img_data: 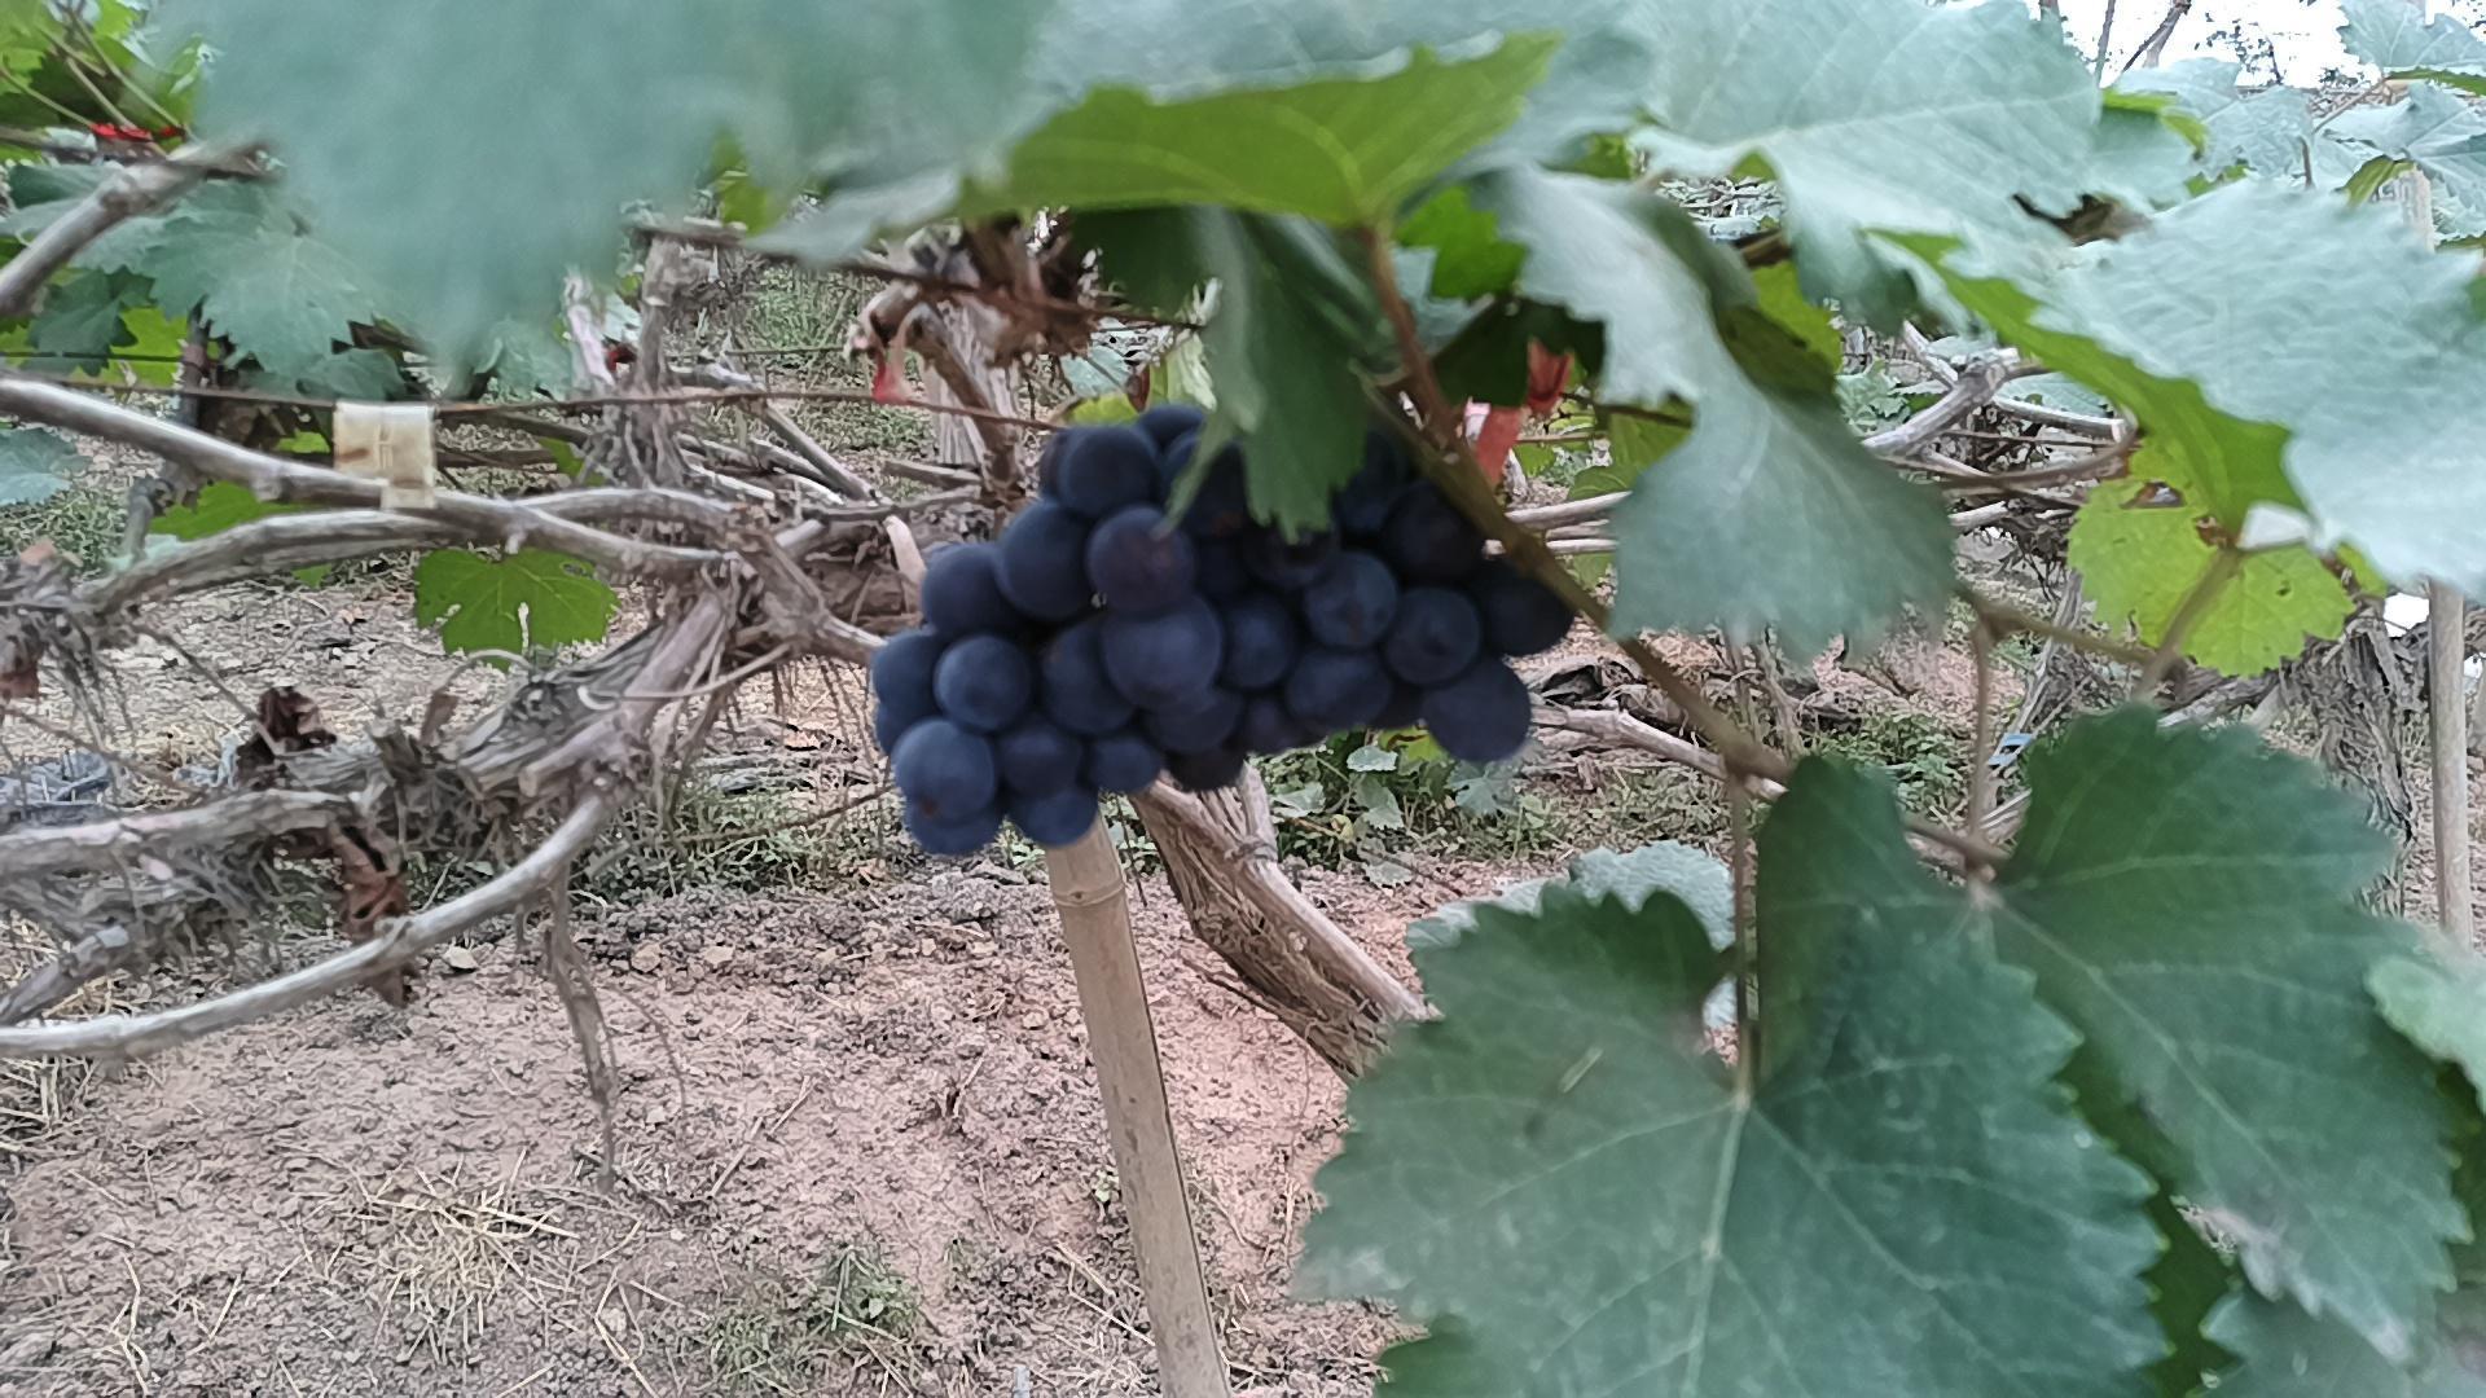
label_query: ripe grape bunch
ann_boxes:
[871,405,1572,854]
